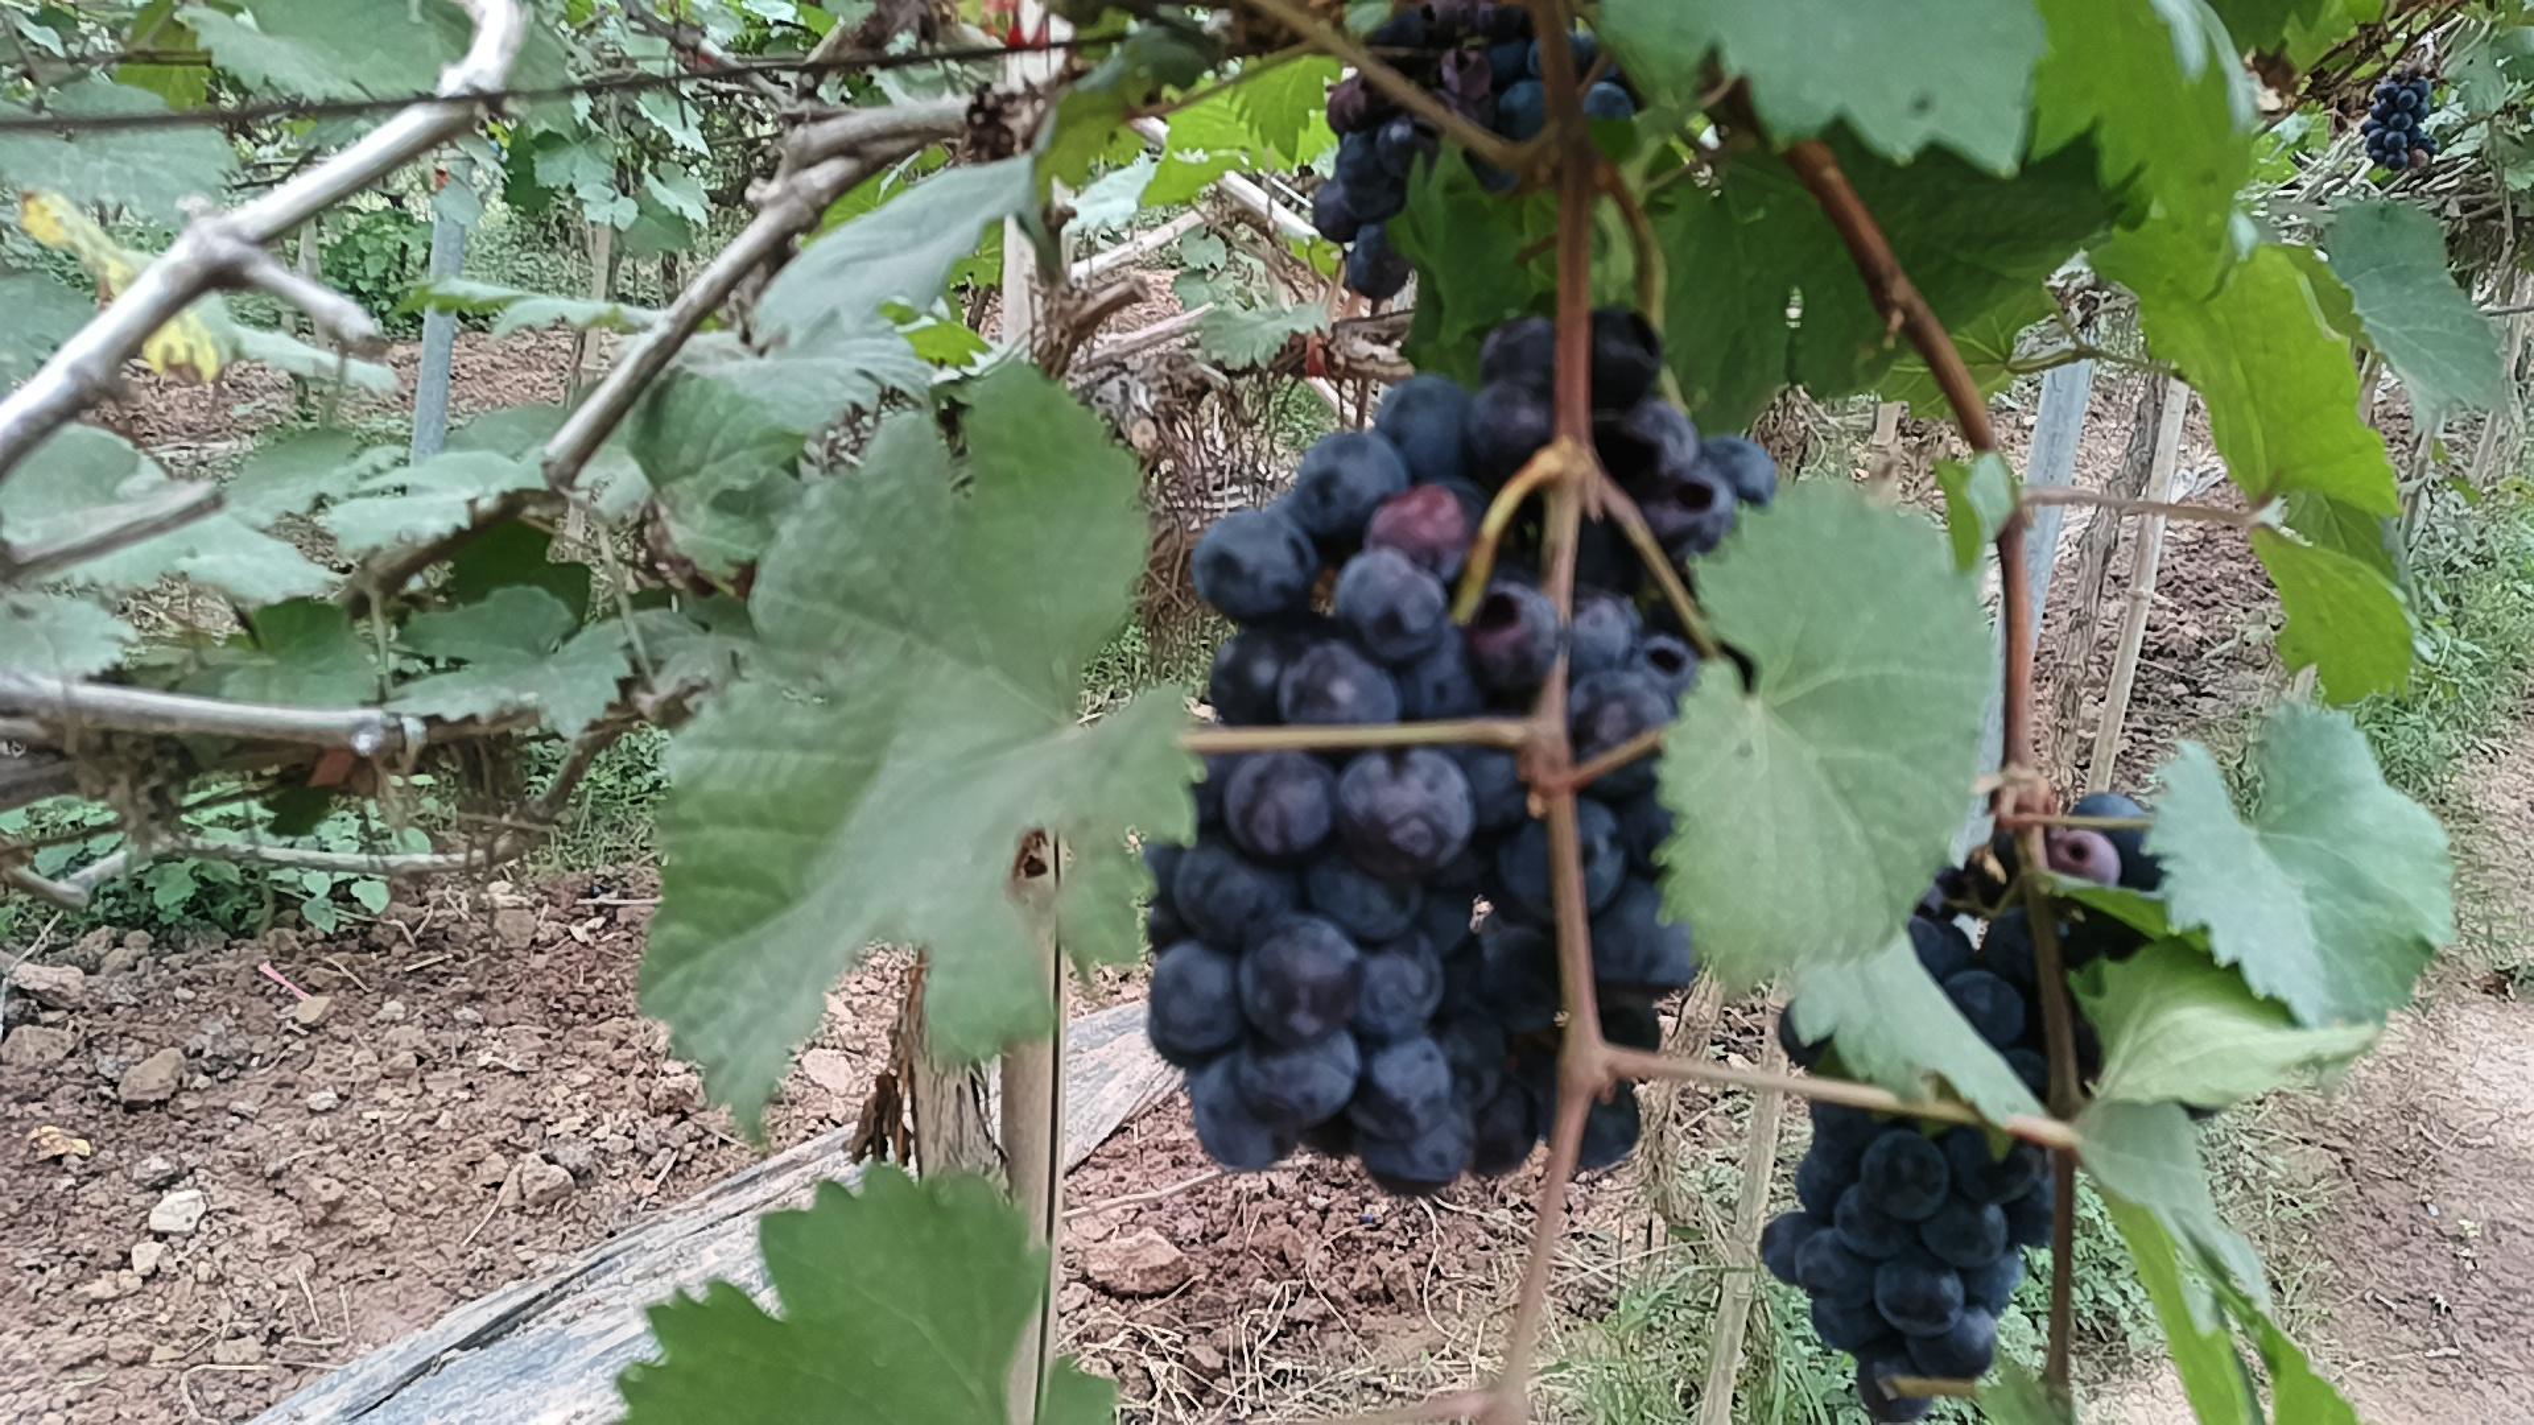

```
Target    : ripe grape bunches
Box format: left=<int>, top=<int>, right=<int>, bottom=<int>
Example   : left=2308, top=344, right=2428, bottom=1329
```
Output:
left=1312, top=0, right=1638, bottom=307
left=1147, top=311, right=1776, bottom=1194
left=1761, top=771, right=2377, bottom=1421
left=2358, top=65, right=2440, bottom=185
